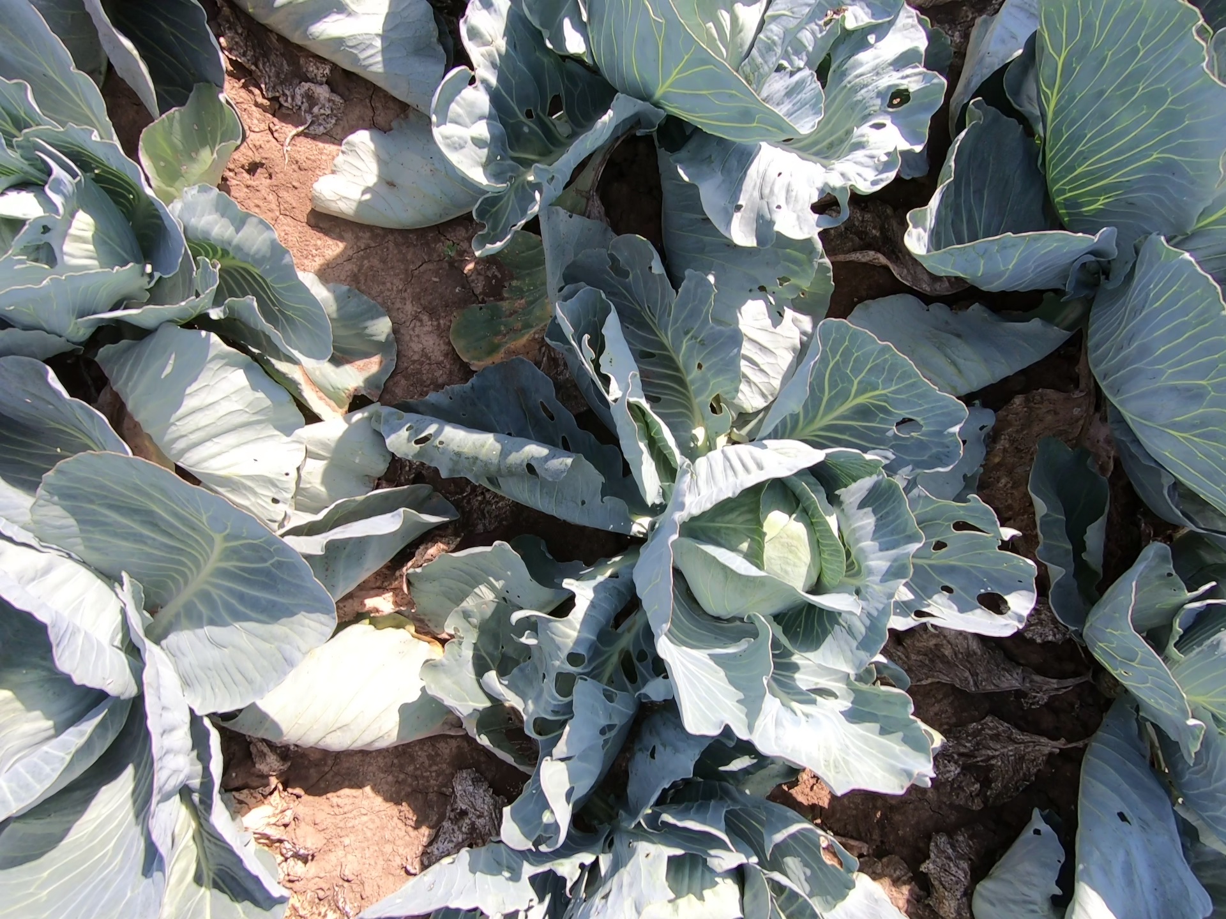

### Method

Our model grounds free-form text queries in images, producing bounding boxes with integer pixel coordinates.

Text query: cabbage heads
[673,452,831,611]
[625,1,771,101]
[580,839,746,915]
[1,585,110,787]
[0,185,130,321]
